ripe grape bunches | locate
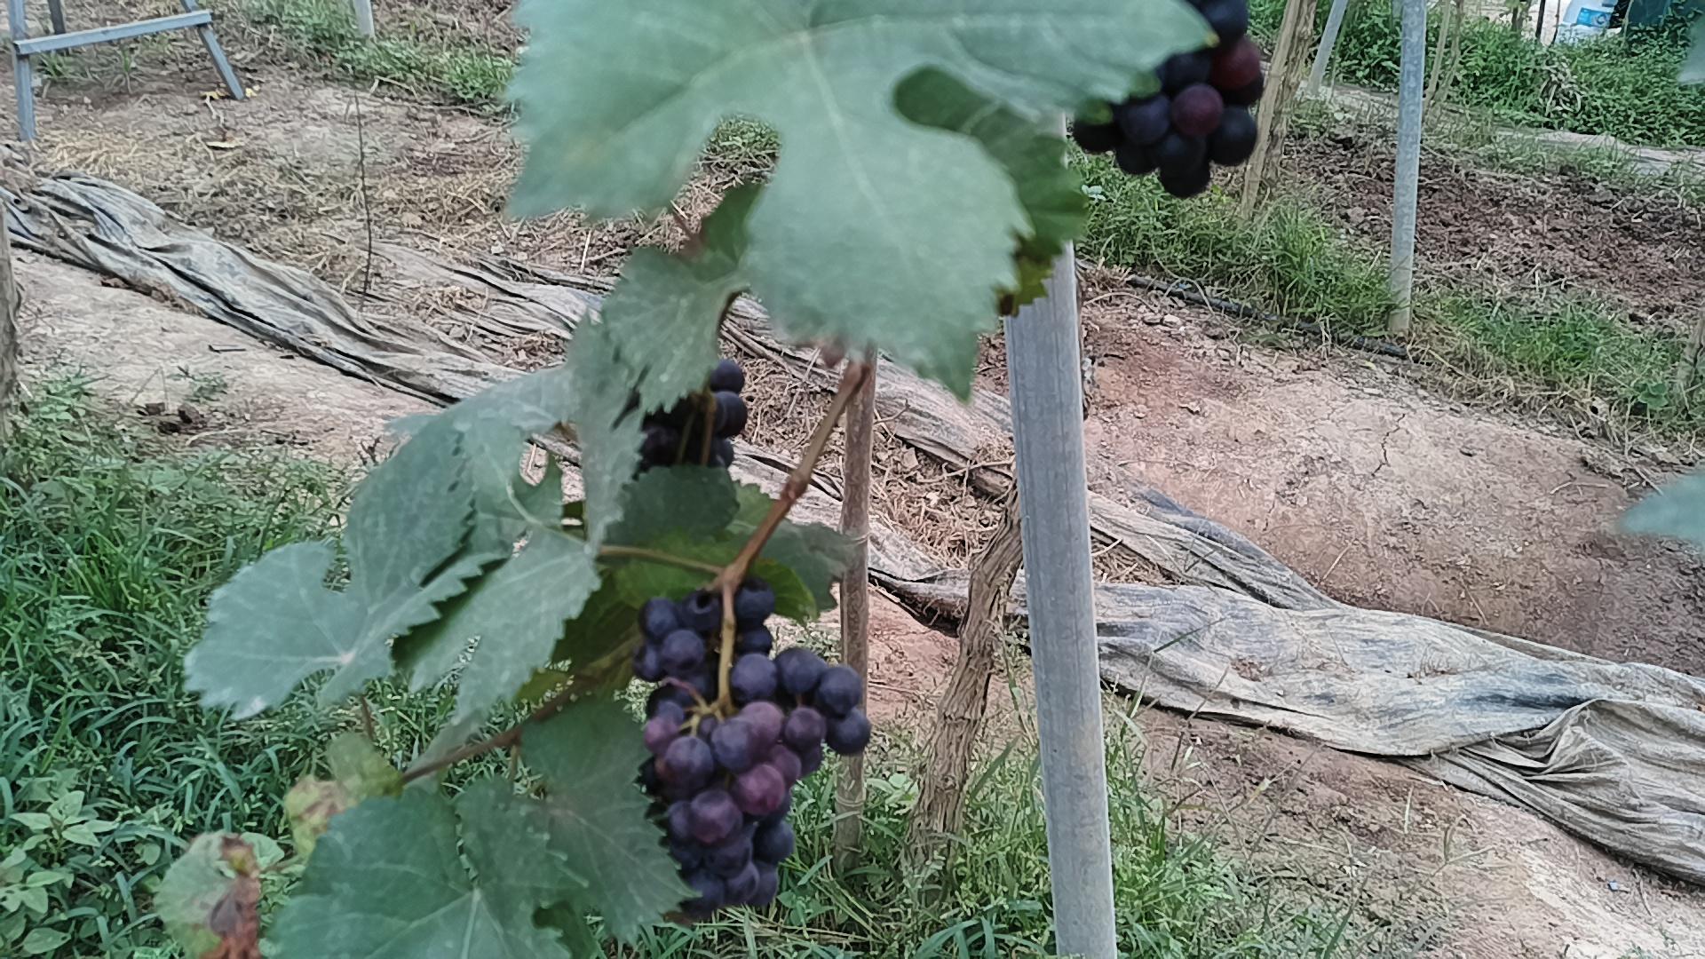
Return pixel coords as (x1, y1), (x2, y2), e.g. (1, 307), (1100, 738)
(634, 576), (870, 916)
(637, 359), (747, 472)
(1070, 0), (1264, 197)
